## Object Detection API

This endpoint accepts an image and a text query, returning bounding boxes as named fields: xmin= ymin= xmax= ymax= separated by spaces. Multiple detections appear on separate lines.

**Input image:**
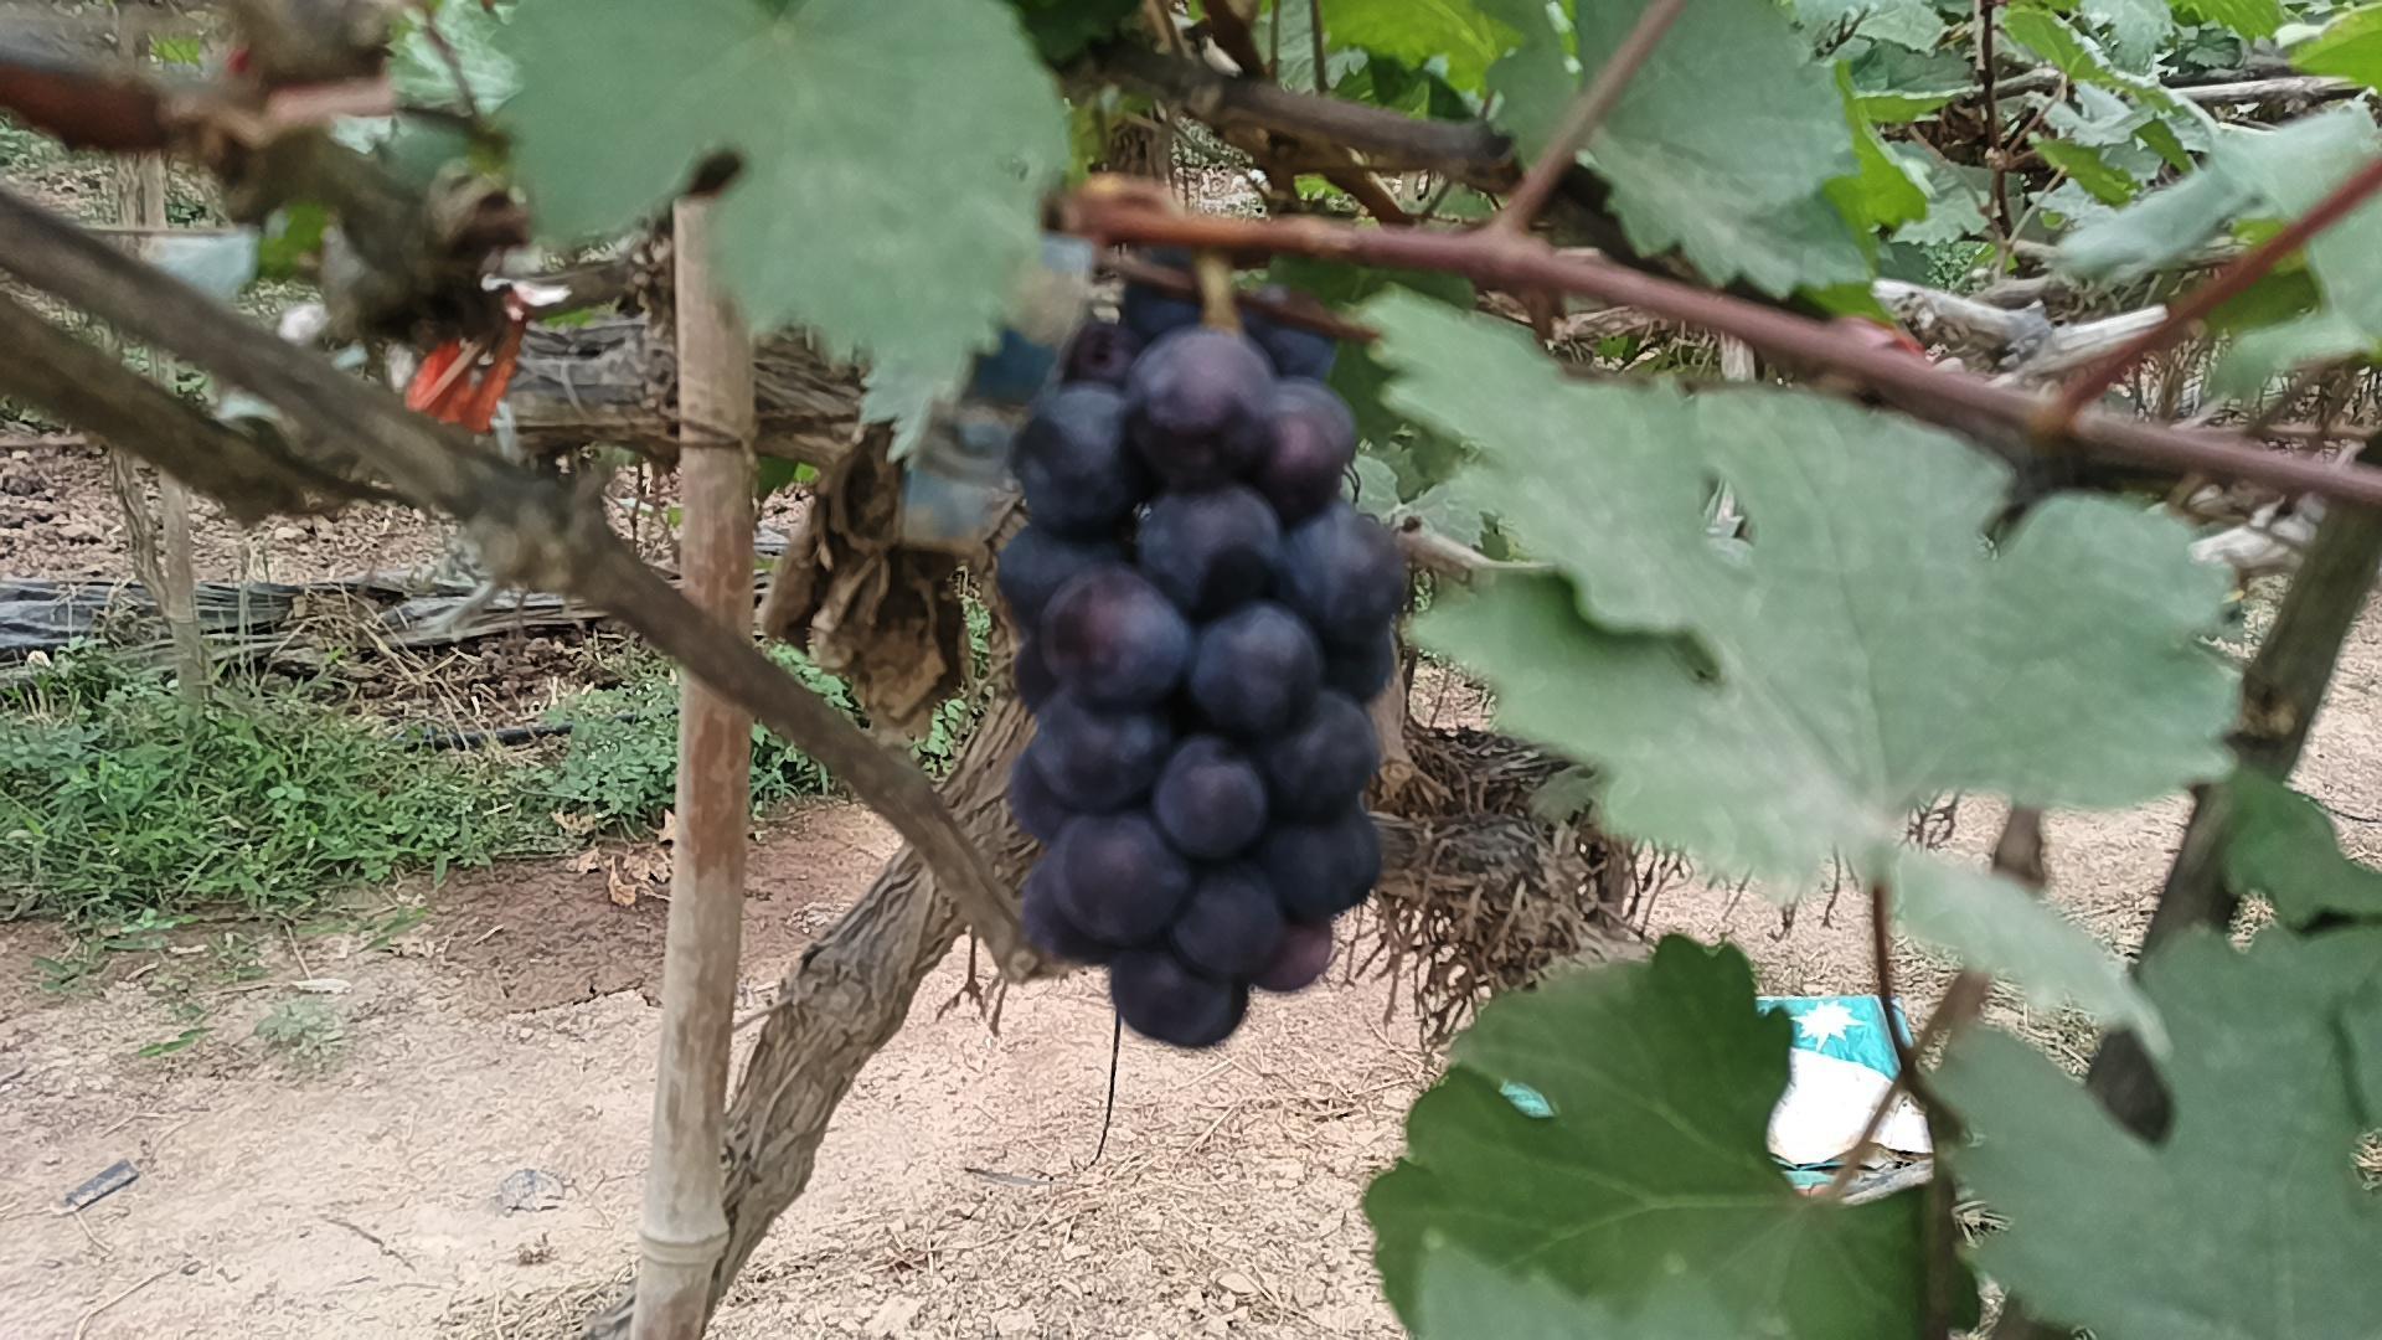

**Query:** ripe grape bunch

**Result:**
xmin=997 ymin=282 xmax=1407 ymax=1046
